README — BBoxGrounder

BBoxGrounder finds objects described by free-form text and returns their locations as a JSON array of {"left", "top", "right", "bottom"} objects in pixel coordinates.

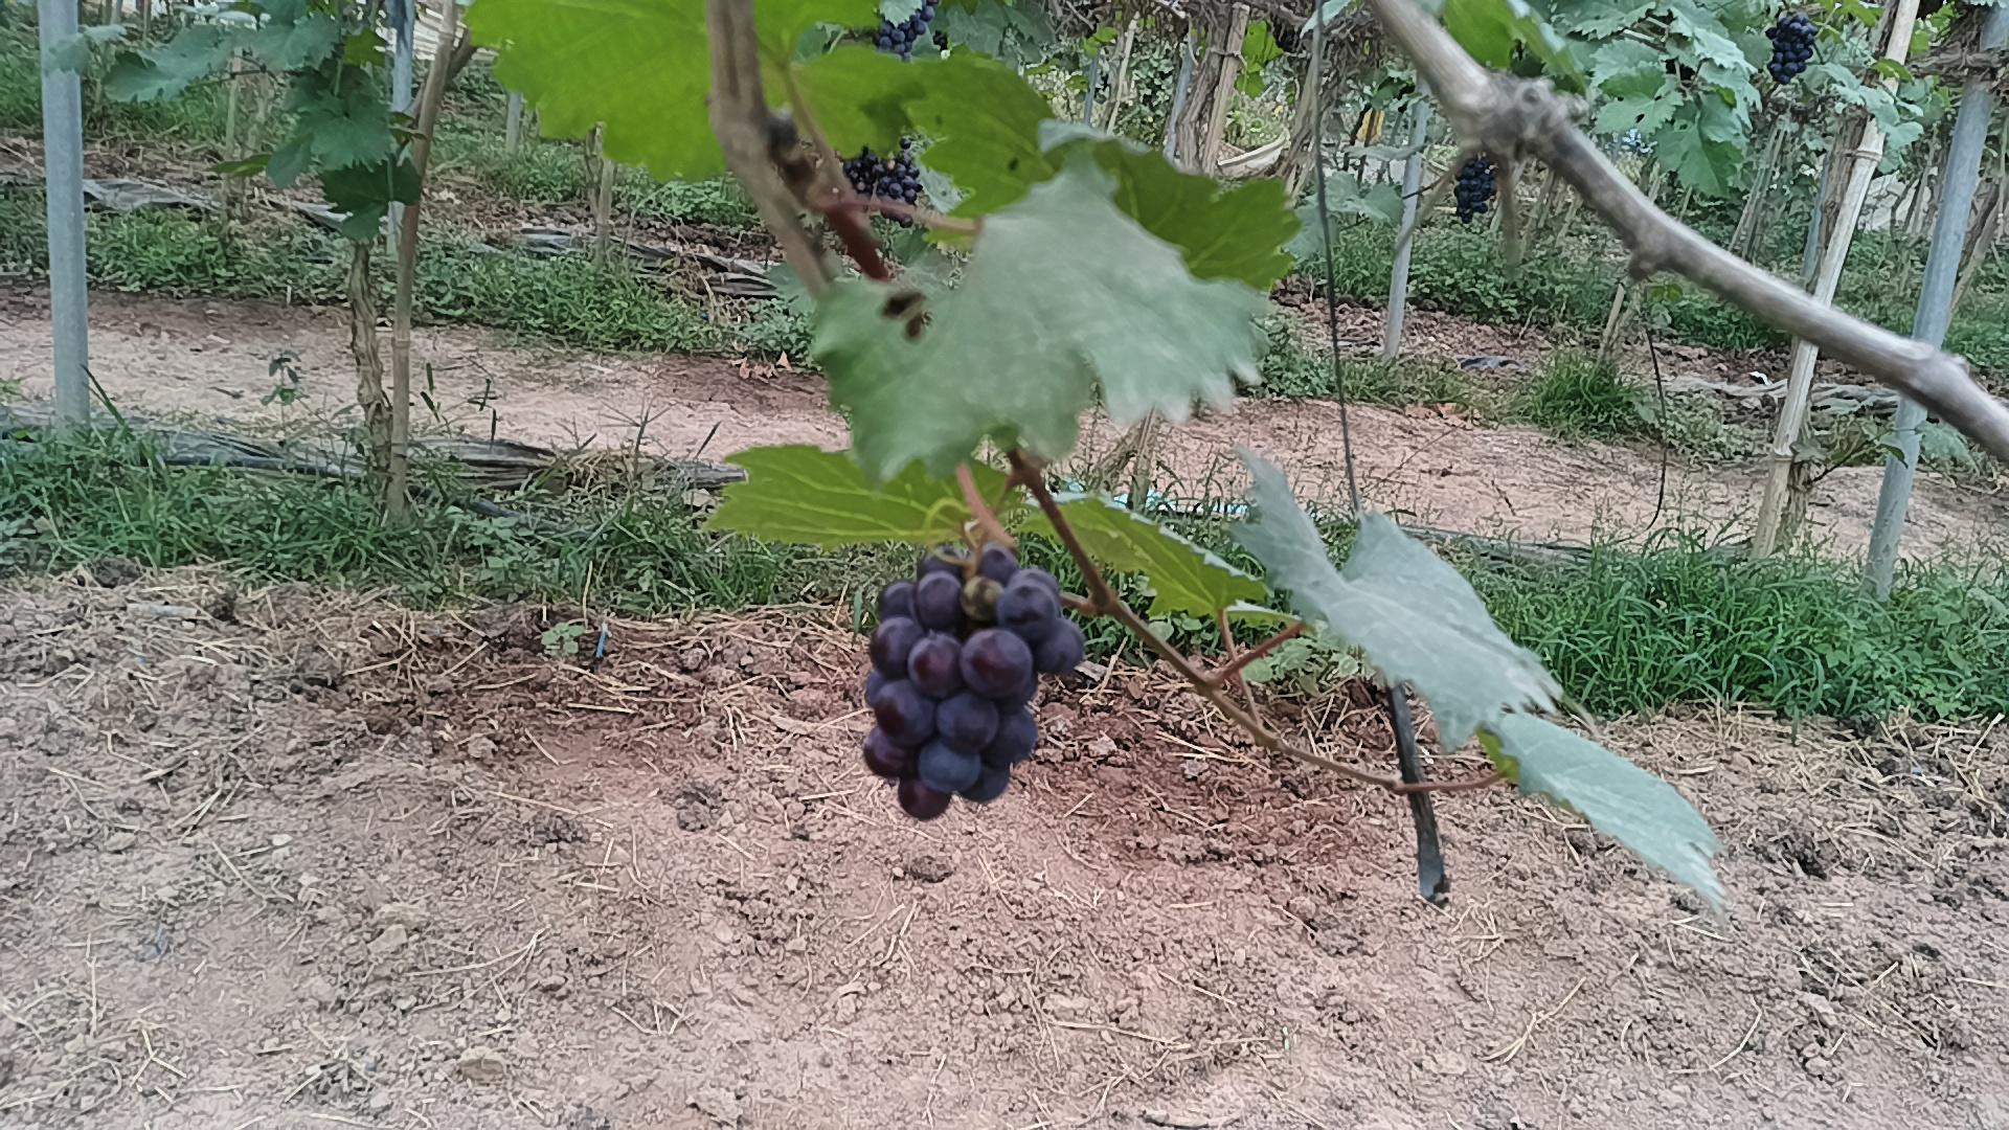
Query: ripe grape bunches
[
  {"left": 1765, "top": 14, "right": 1819, "bottom": 85},
  {"left": 863, "top": 542, "right": 1084, "bottom": 819},
  {"left": 1453, "top": 155, "right": 1495, "bottom": 223},
  {"left": 825, "top": 0, "right": 949, "bottom": 61},
  {"left": 843, "top": 139, "right": 926, "bottom": 227}
]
